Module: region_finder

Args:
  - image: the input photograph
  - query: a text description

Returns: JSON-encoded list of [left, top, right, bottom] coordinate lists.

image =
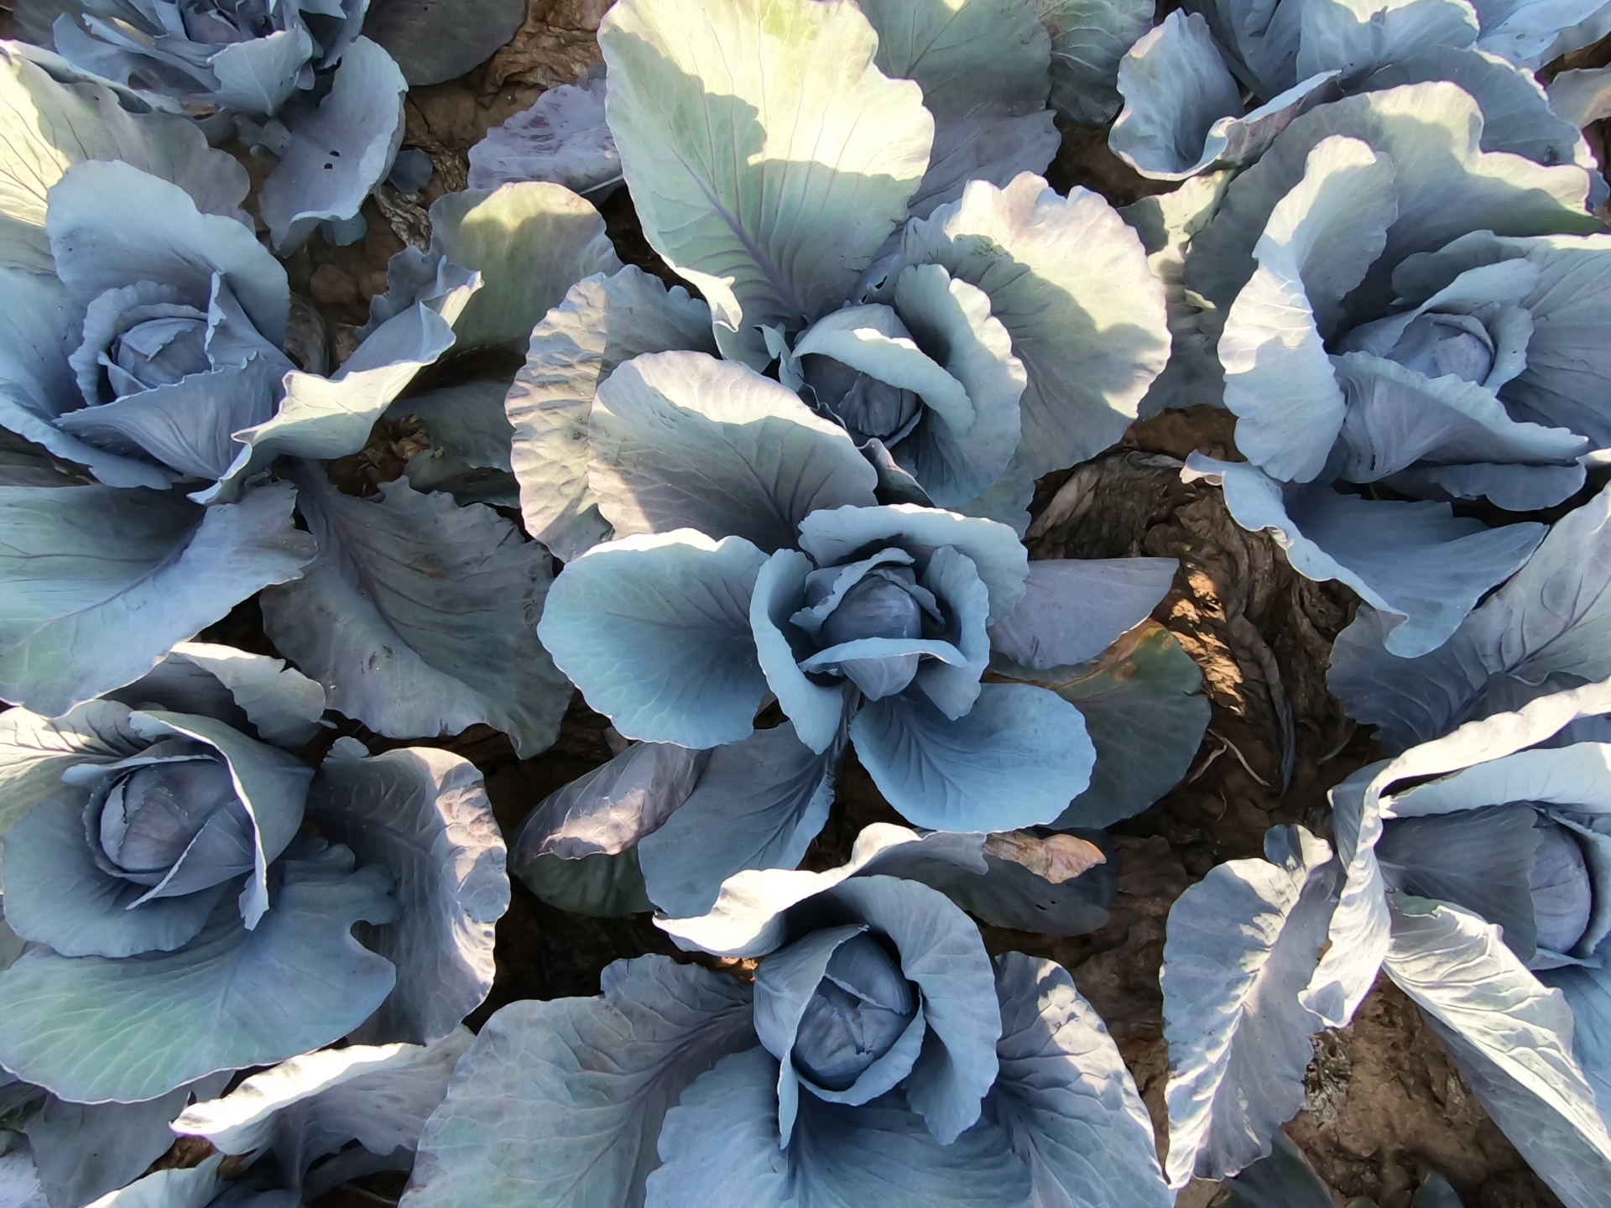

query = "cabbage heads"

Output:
[[1411, 803, 1588, 962], [804, 310, 929, 443], [114, 317, 273, 464], [819, 570, 920, 682], [175, 0, 291, 90], [1353, 313, 1499, 430], [101, 743, 260, 878], [775, 938, 922, 1090]]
